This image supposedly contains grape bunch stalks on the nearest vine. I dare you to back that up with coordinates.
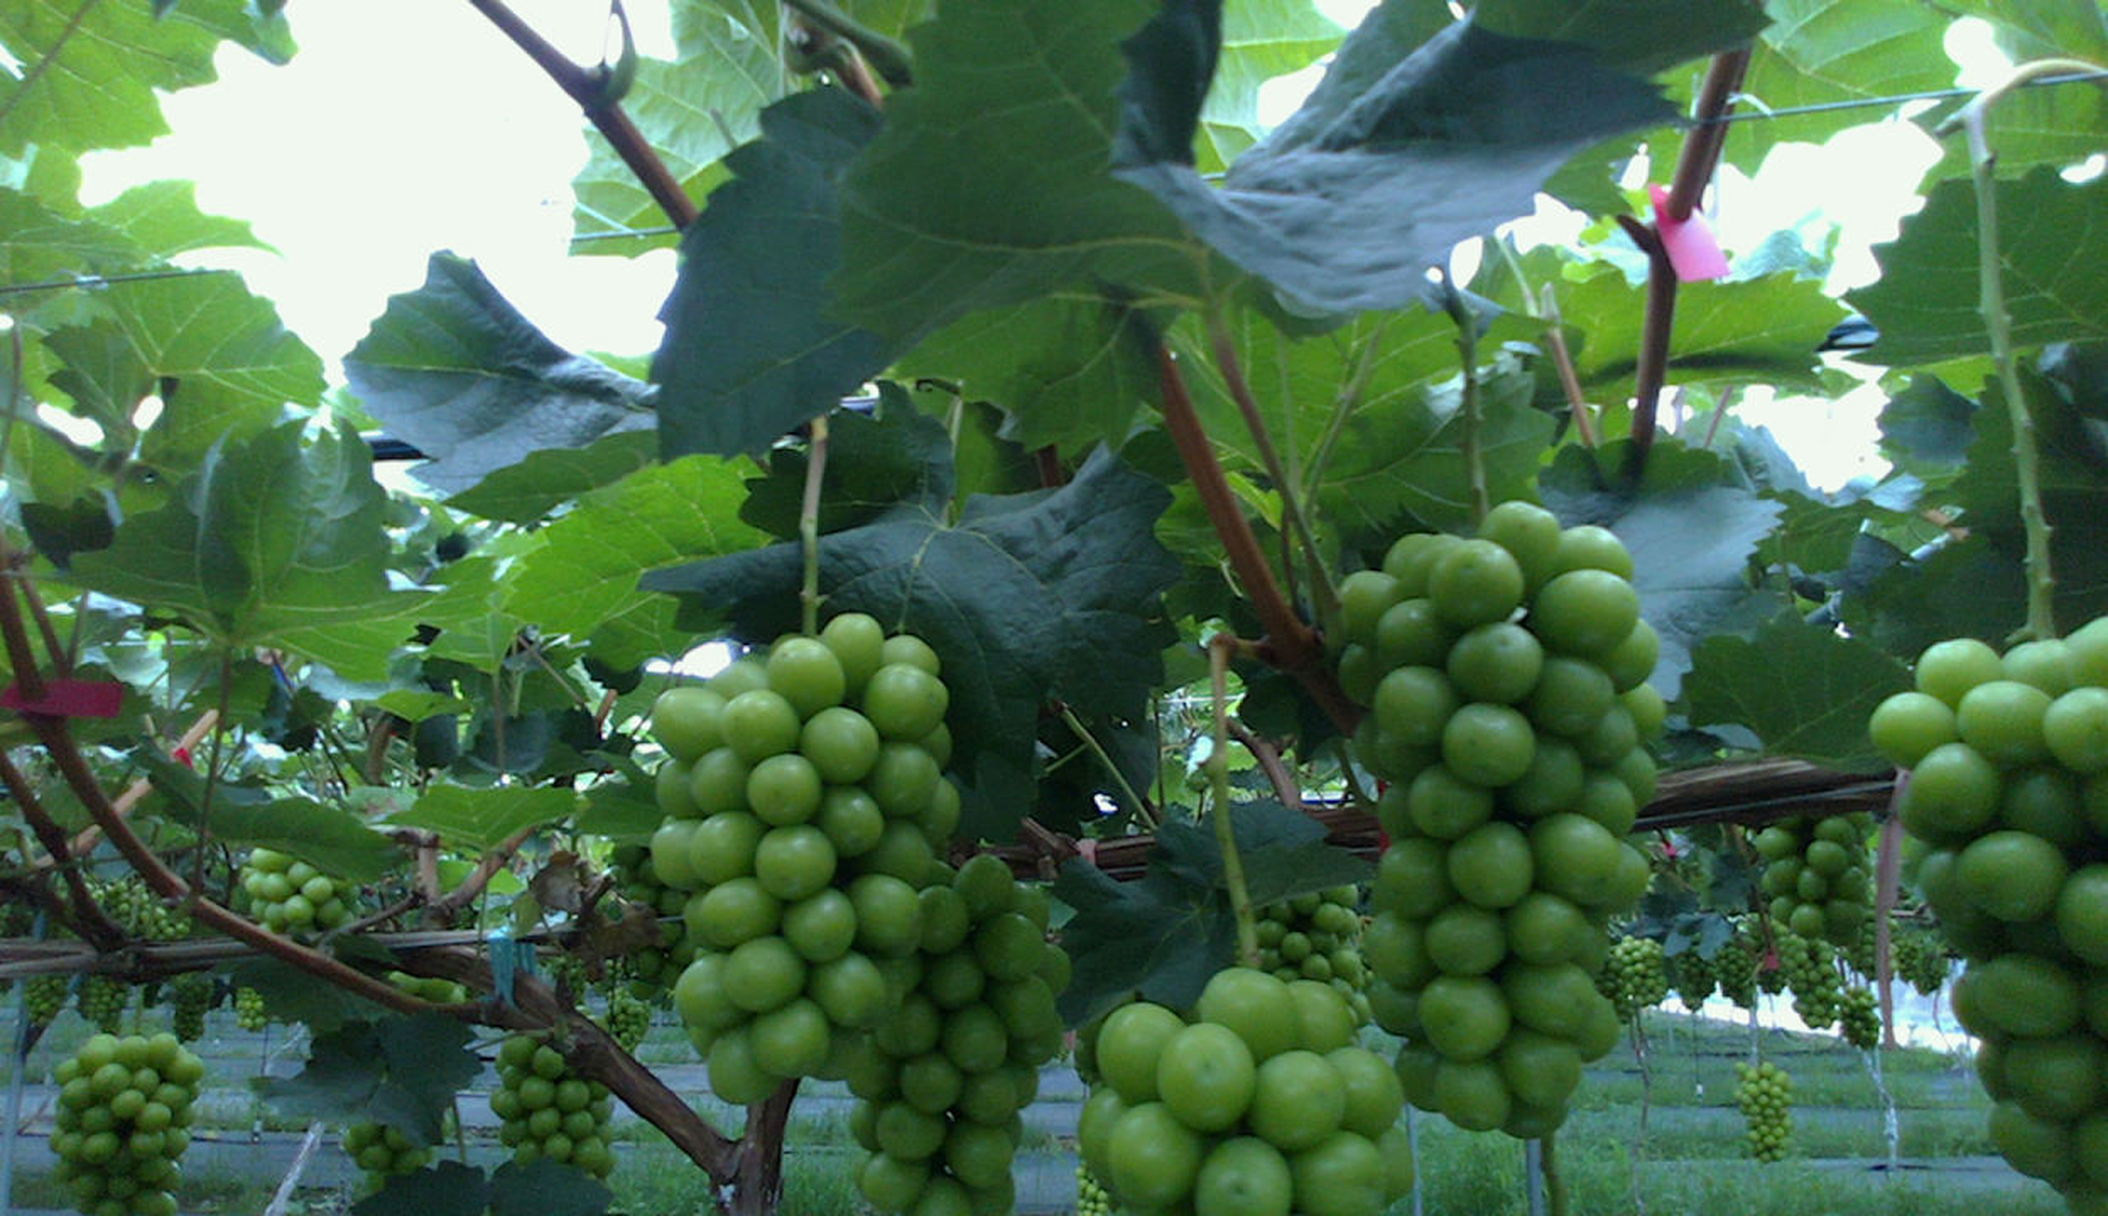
[1209,637,1263,974]
[1966,56,2100,650]
[1442,275,1493,535]
[801,415,826,640]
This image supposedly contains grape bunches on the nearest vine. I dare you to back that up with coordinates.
[1870,615,2106,1214]
[1339,500,1664,1137]
[650,613,959,1106]
[1078,966,1417,1214]
[845,853,1074,1214]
